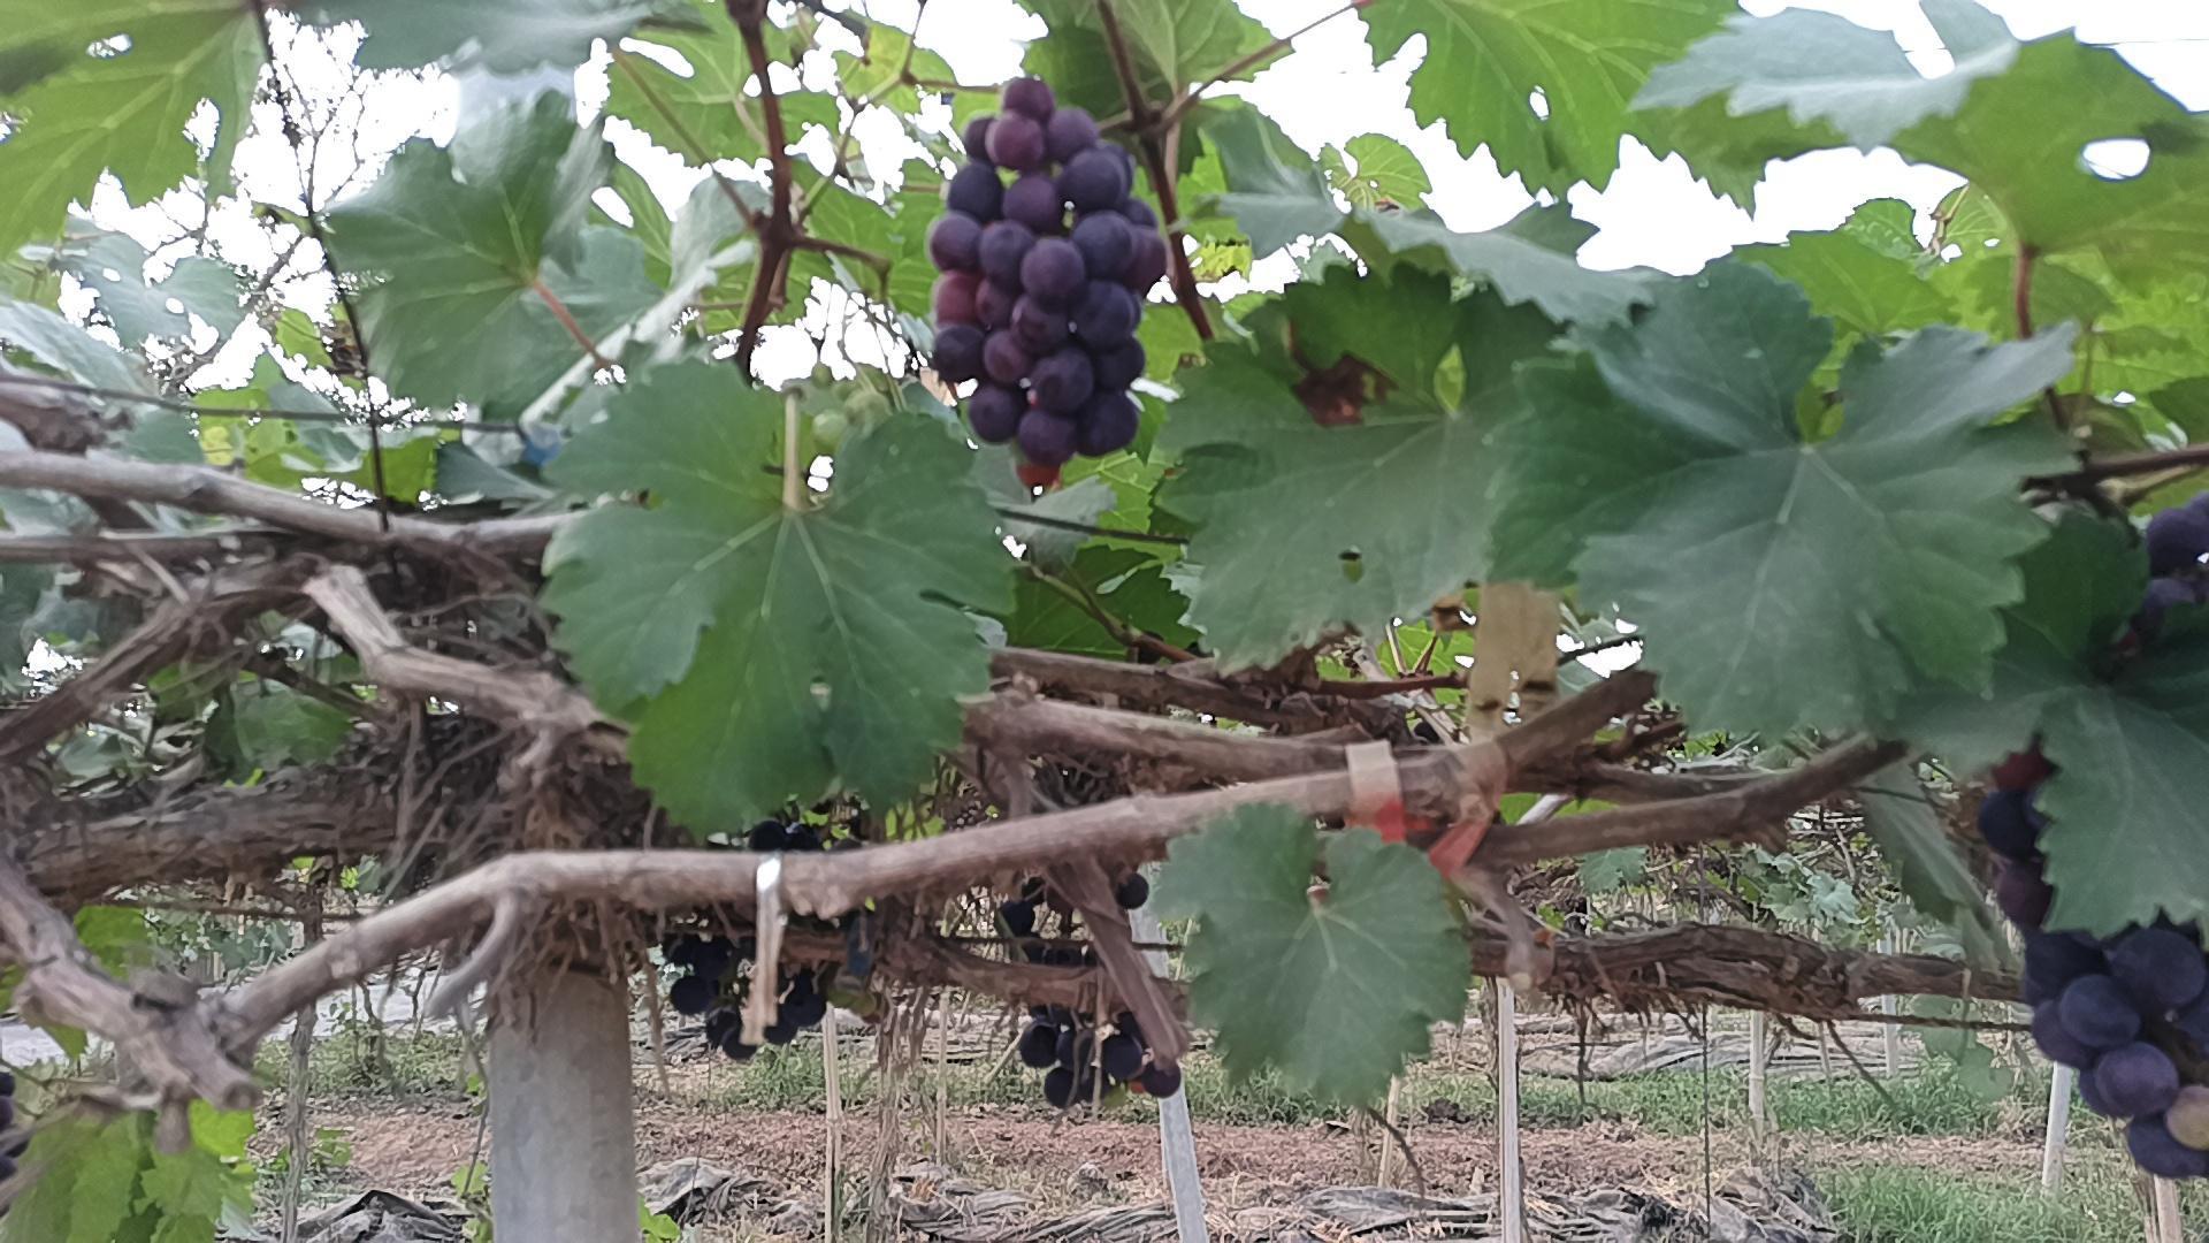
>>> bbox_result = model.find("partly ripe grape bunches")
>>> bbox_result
[993,869,1184,1114]
[662,796,891,1065]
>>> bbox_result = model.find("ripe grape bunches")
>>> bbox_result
[1975,487,2208,1182]
[928,79,1167,482]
